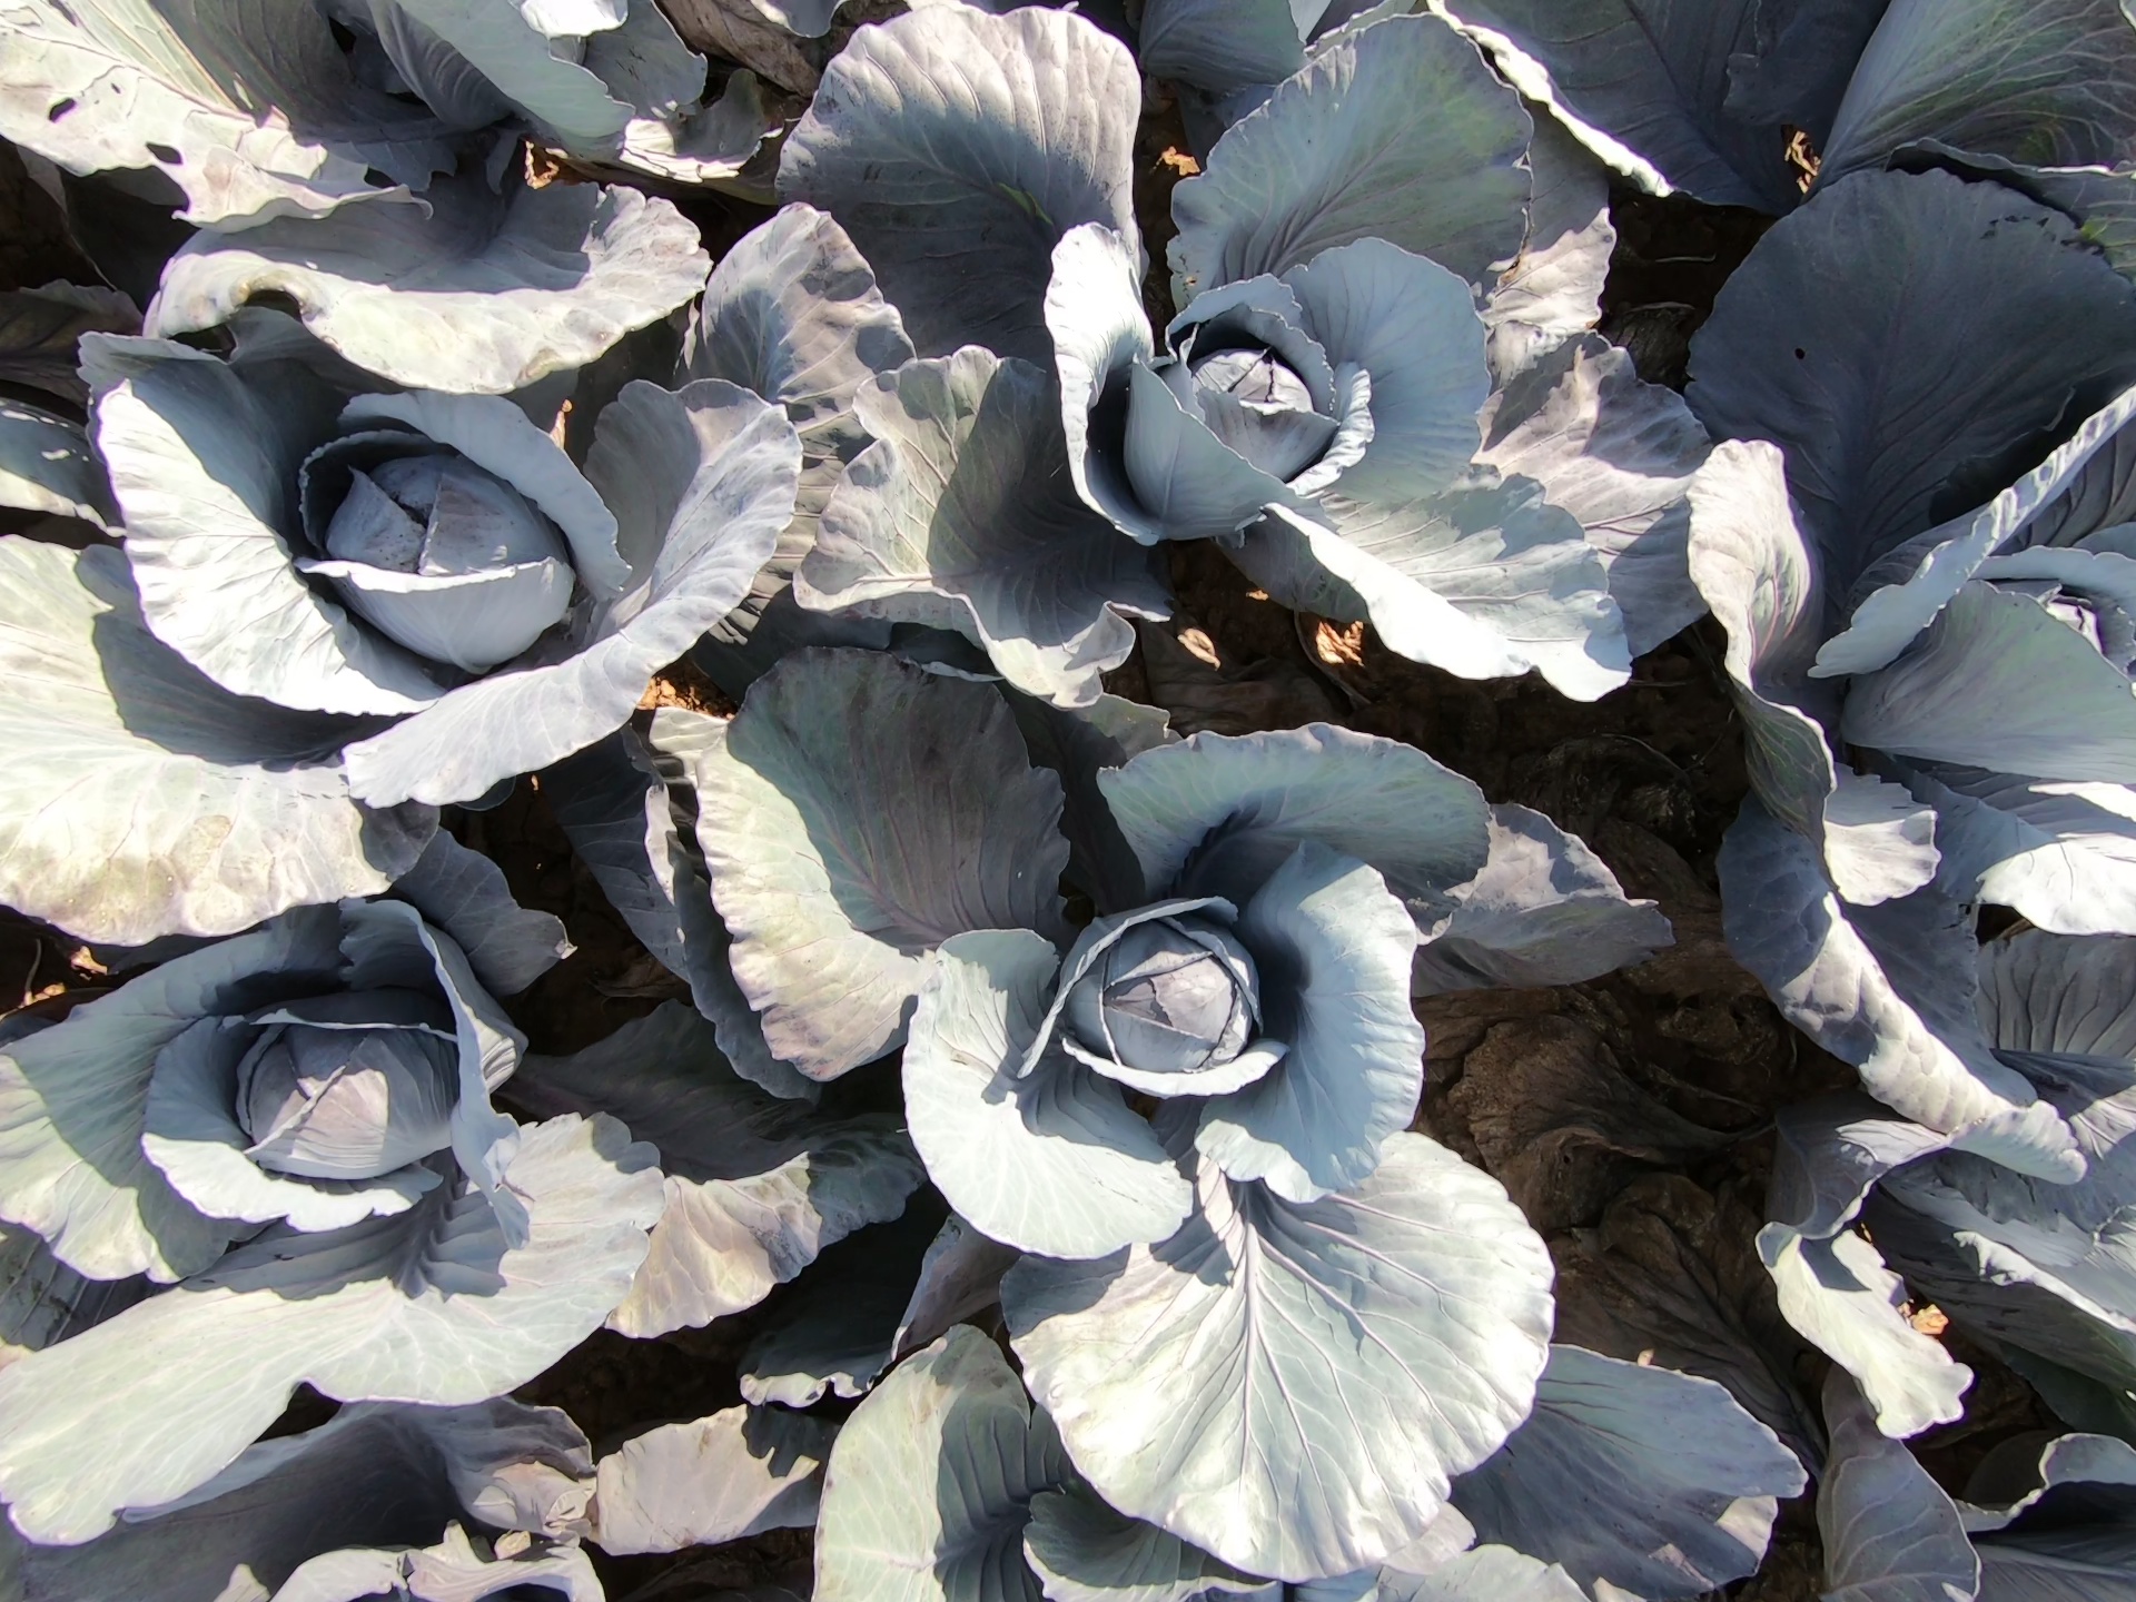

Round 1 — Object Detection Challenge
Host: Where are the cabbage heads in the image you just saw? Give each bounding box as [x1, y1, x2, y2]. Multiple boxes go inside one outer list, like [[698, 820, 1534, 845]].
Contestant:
[[1169, 354, 1314, 496], [1915, 1071, 2132, 1301], [1889, 583, 2106, 718], [237, 990, 461, 1174], [366, 4, 585, 91], [323, 458, 563, 660], [1069, 917, 1258, 1092]]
